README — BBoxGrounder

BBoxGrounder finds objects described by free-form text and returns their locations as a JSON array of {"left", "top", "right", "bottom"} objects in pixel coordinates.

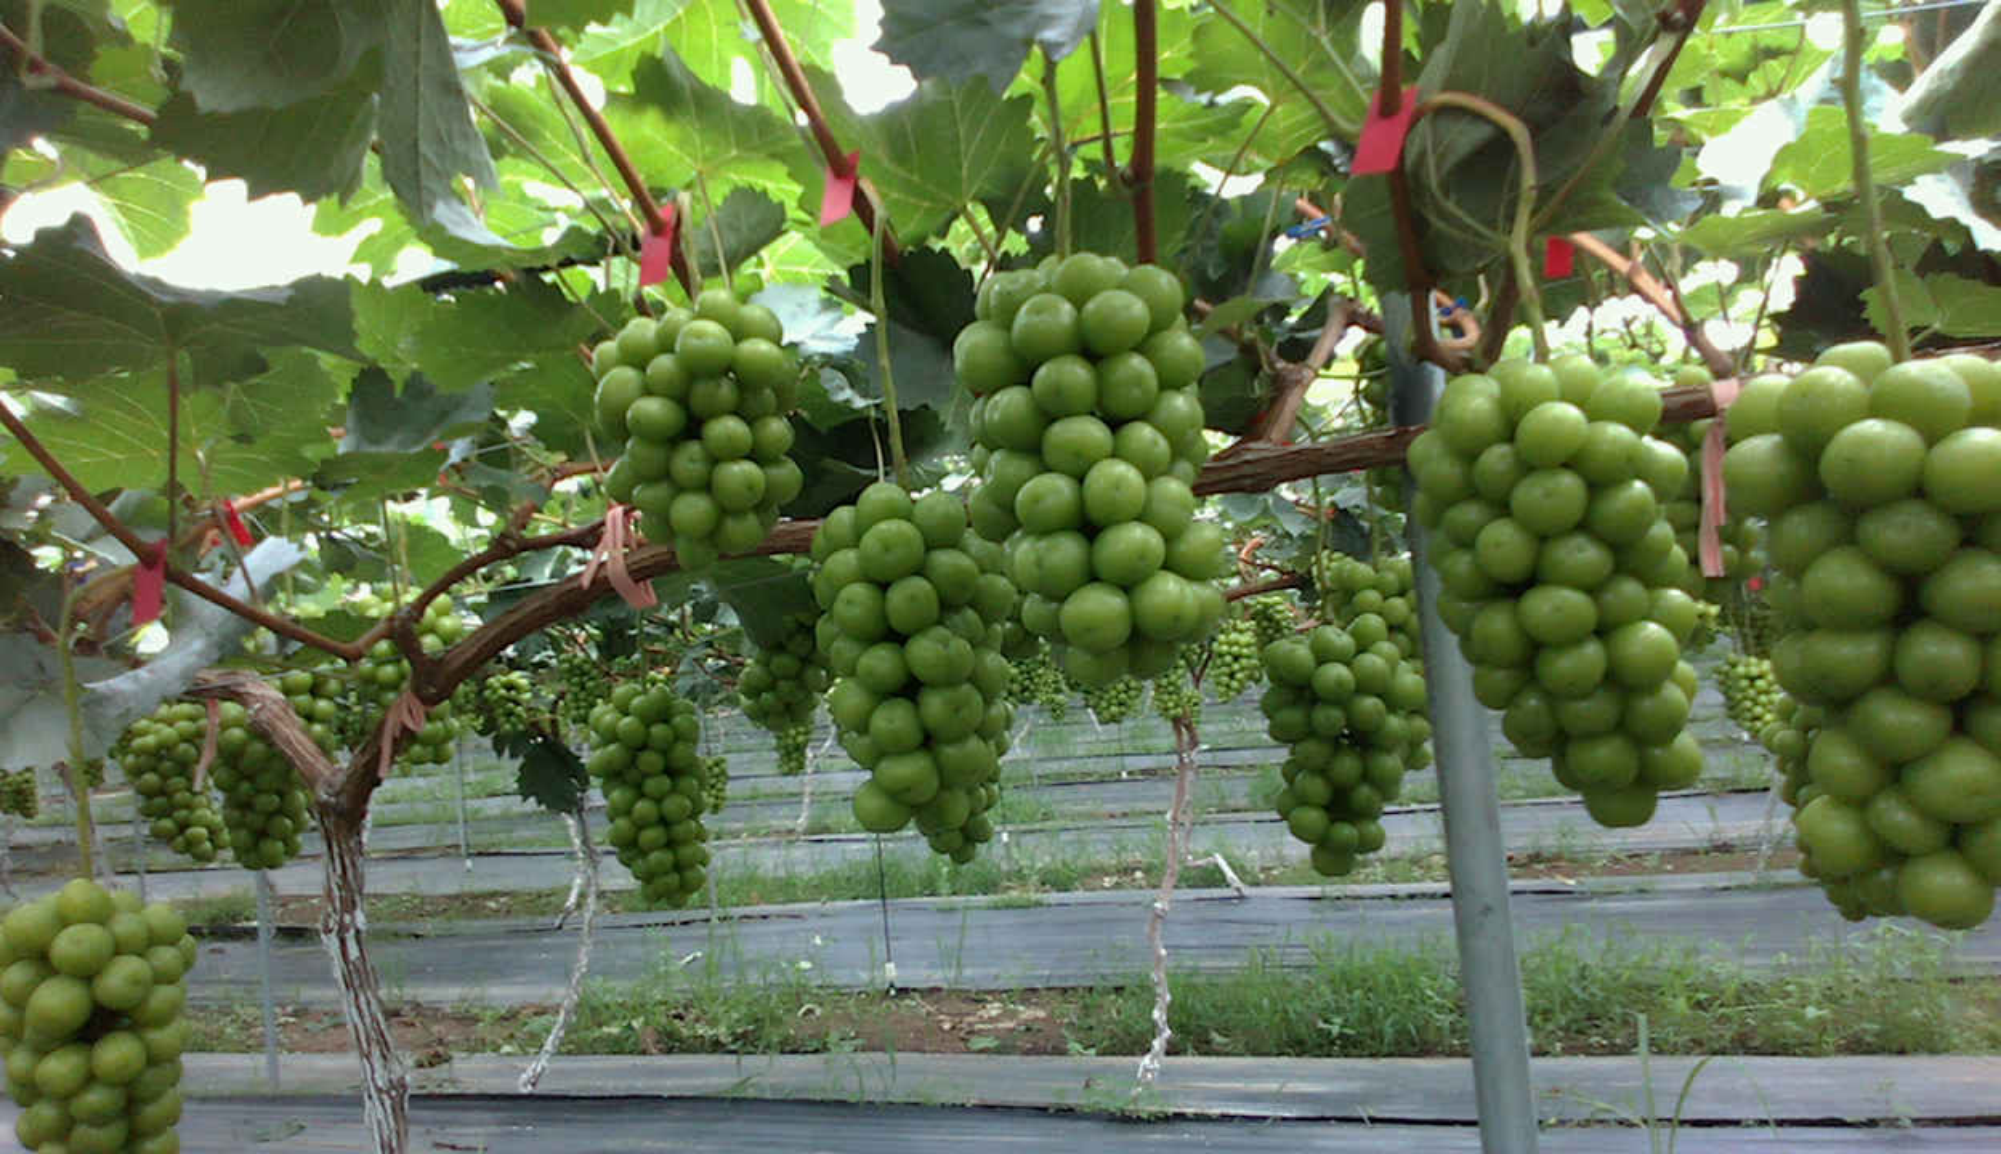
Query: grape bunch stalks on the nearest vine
[
  {"left": 1839, "top": 0, "right": 1914, "bottom": 364},
  {"left": 856, "top": 176, "right": 911, "bottom": 494},
  {"left": 1045, "top": 53, "right": 1069, "bottom": 261},
  {"left": 56, "top": 563, "right": 138, "bottom": 883},
  {"left": 672, "top": 192, "right": 704, "bottom": 303},
  {"left": 1405, "top": 95, "right": 1549, "bottom": 364}
]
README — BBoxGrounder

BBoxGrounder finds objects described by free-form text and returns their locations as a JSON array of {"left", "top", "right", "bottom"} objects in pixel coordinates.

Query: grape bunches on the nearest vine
[
  {"left": 592, "top": 288, "right": 803, "bottom": 571},
  {"left": 952, "top": 252, "right": 1225, "bottom": 688},
  {"left": 1406, "top": 356, "right": 1704, "bottom": 829},
  {"left": 1719, "top": 341, "right": 1999, "bottom": 930},
  {"left": 811, "top": 481, "right": 1015, "bottom": 833},
  {"left": 0, "top": 877, "right": 197, "bottom": 1152}
]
